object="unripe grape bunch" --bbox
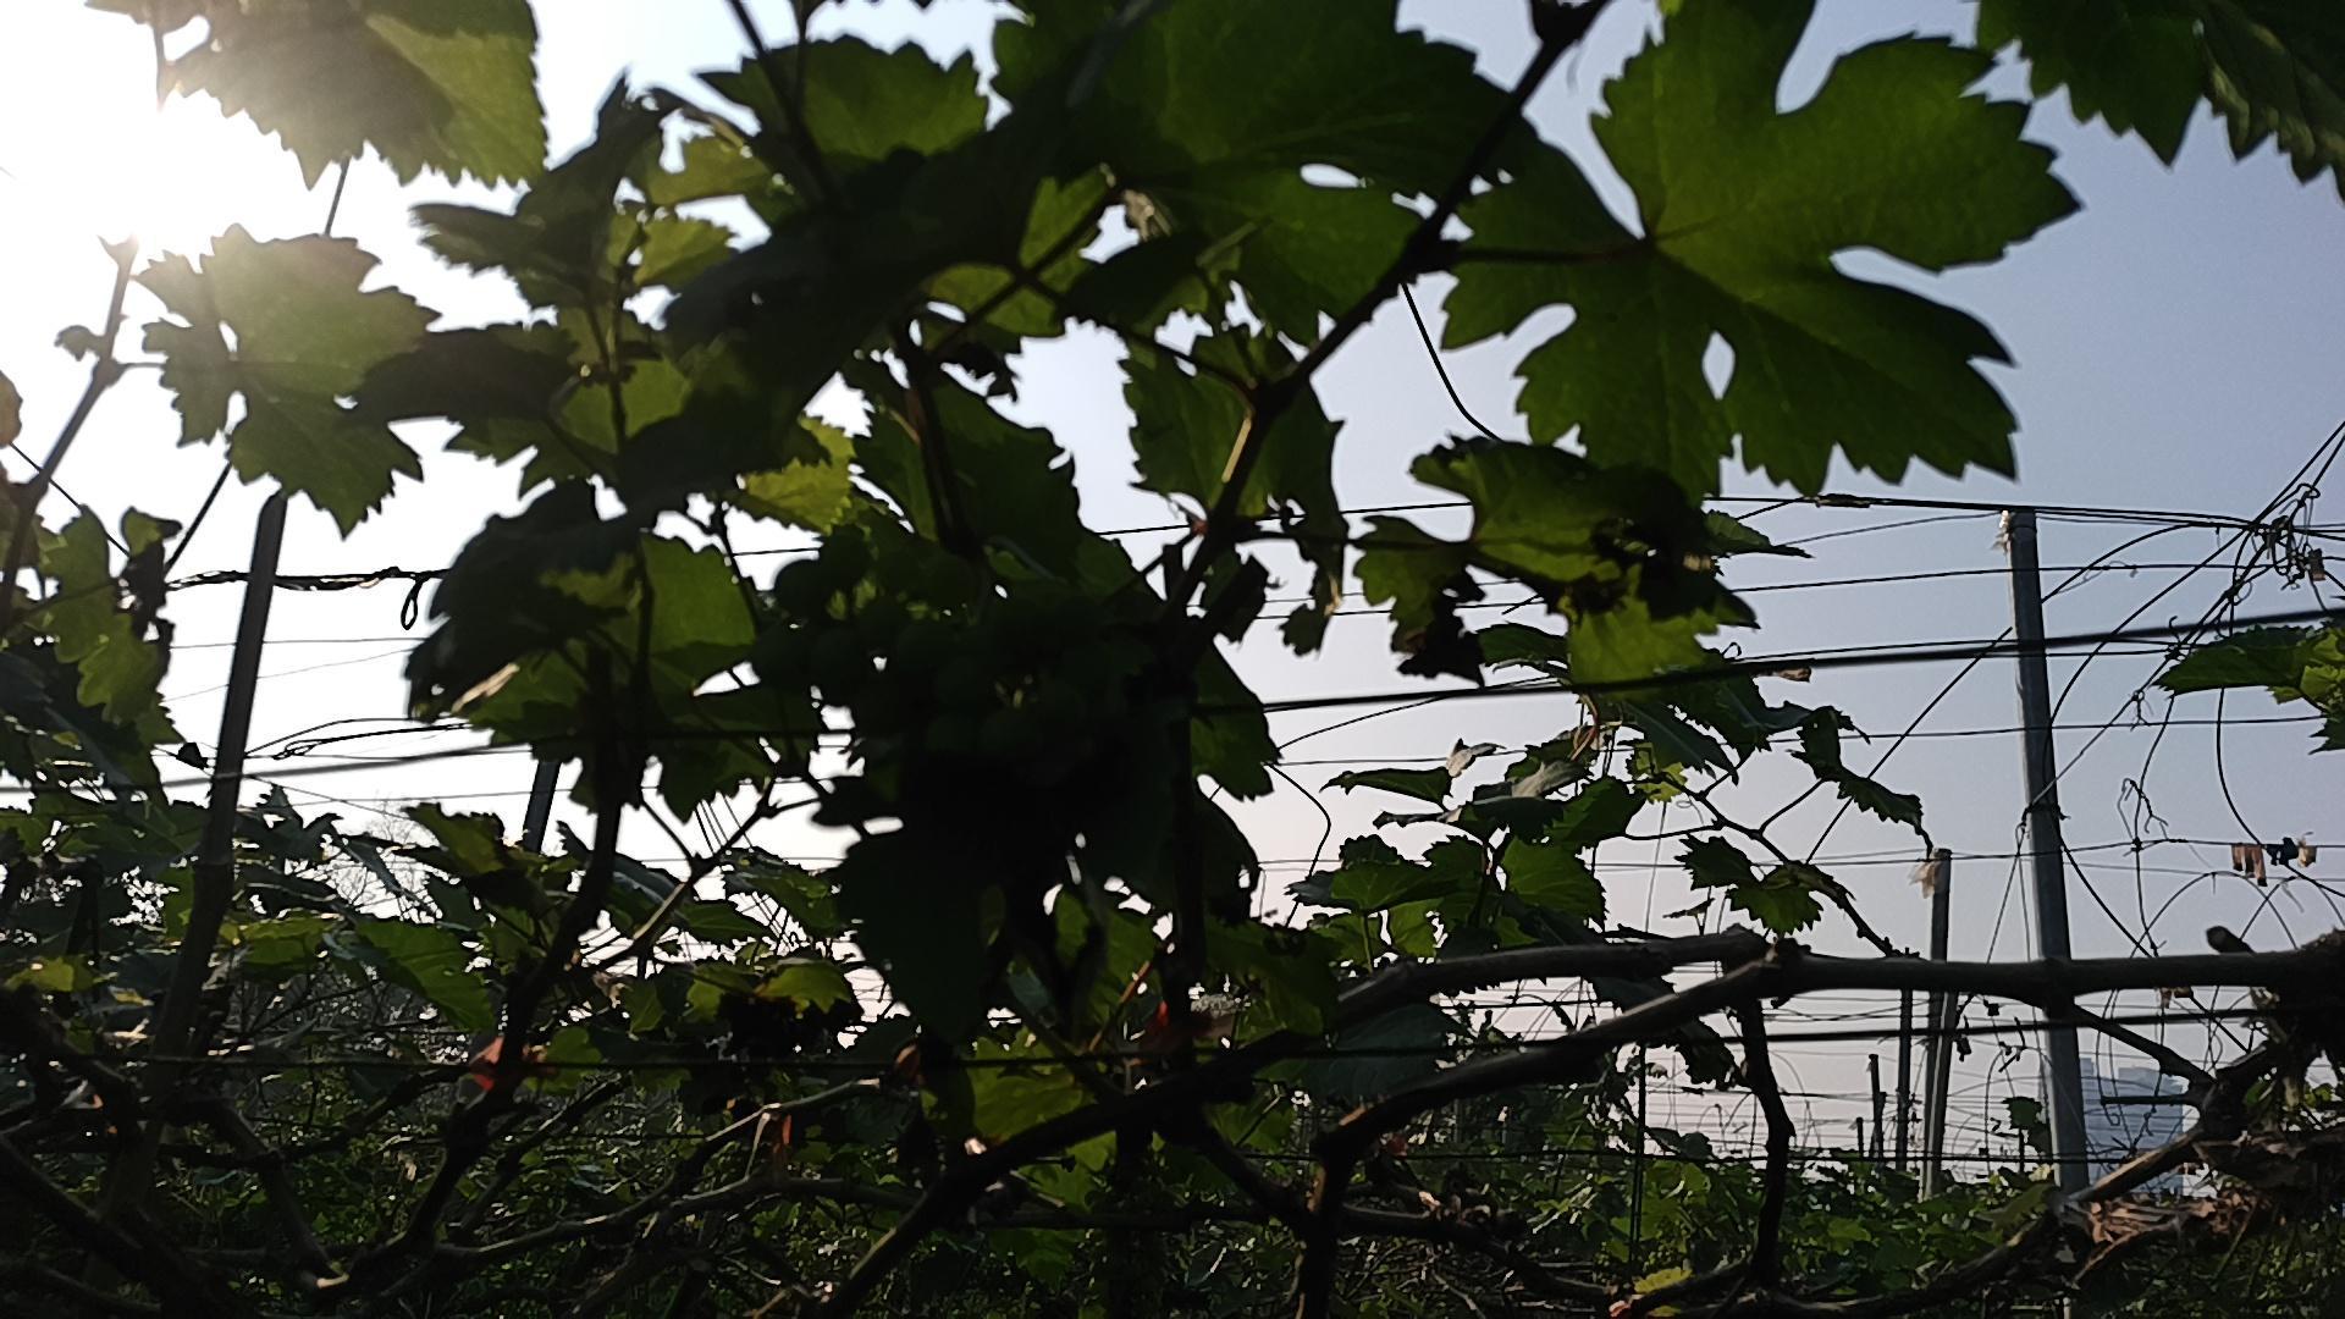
[751,509,1160,828]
